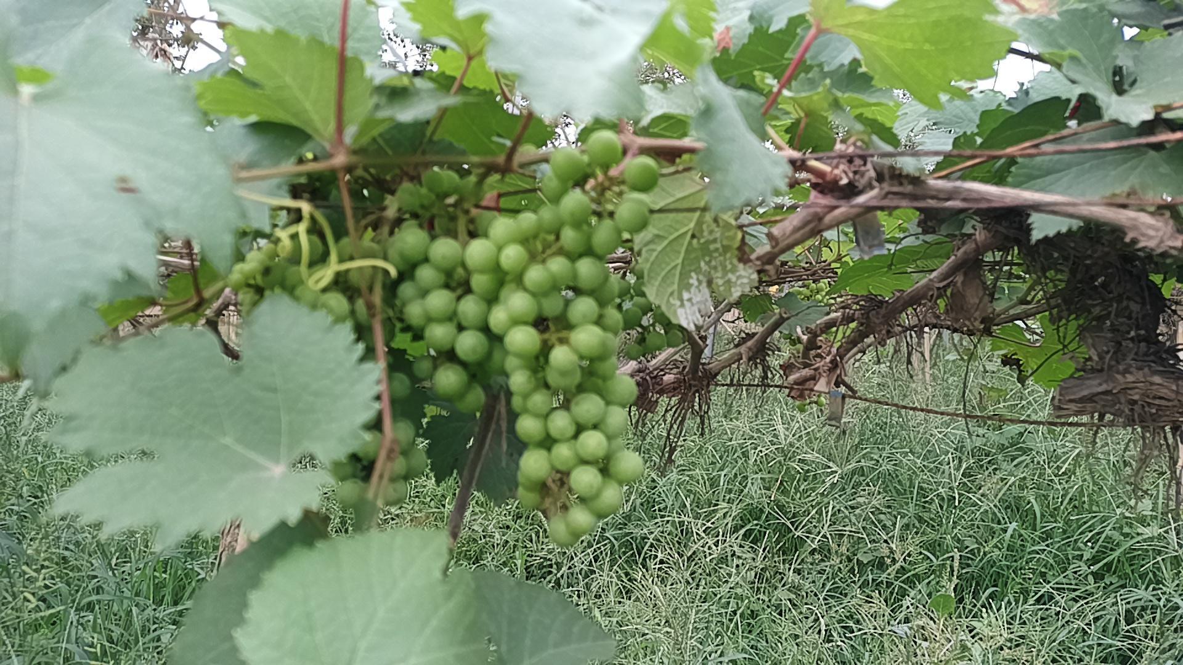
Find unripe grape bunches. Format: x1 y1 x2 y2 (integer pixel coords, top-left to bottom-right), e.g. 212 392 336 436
489 130 659 545
794 395 826 413
227 223 425 506
617 258 683 359
789 279 837 303
388 226 506 412
778 331 797 345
